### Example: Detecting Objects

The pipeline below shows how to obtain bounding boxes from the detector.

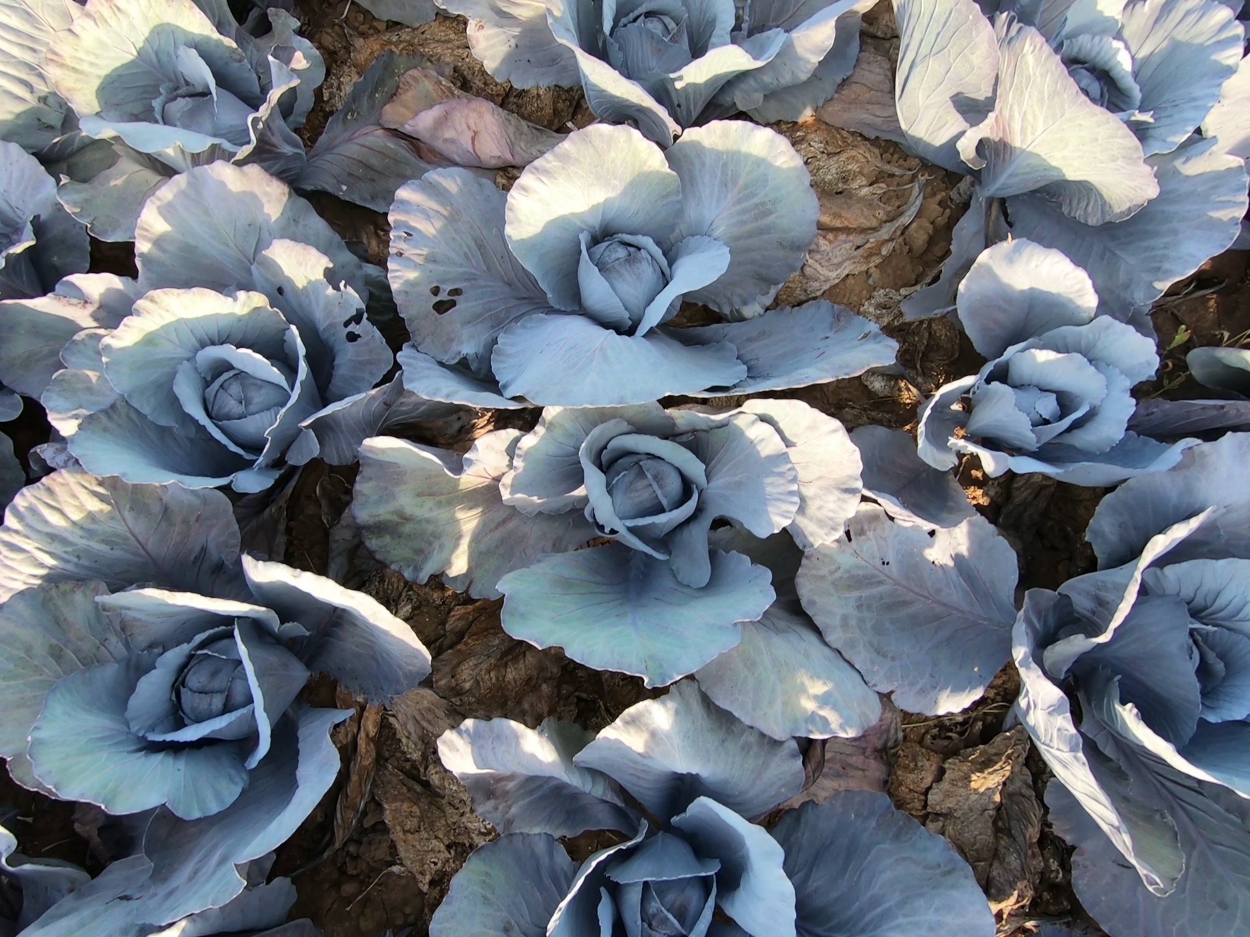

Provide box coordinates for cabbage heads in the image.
[161,92,253,154]
[205,363,300,451]
[999,383,1059,429]
[1043,66,1106,143]
[600,452,680,526]
[618,843,706,936]
[583,236,665,324]
[621,16,688,99]
[177,638,282,736]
